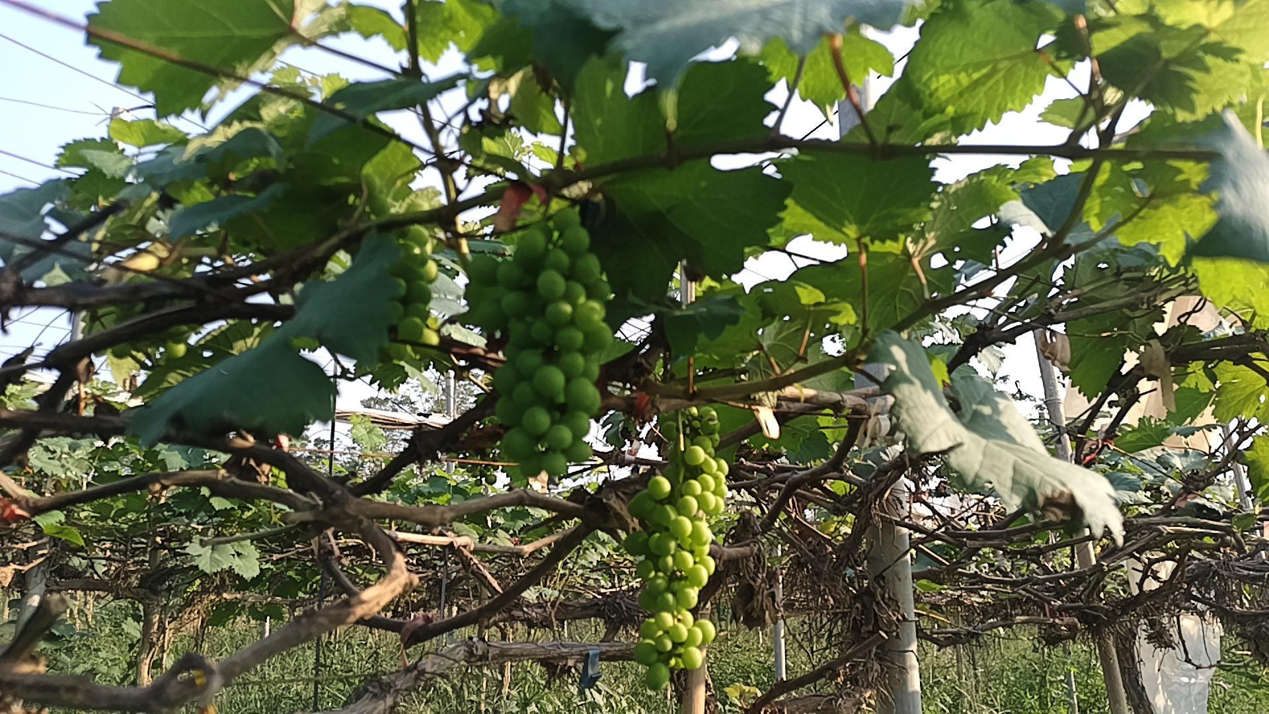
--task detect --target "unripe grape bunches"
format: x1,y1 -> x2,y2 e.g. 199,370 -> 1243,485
112,265 -> 198,360
475,207 -> 612,478
362,175 -> 441,366
623,407 -> 728,689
